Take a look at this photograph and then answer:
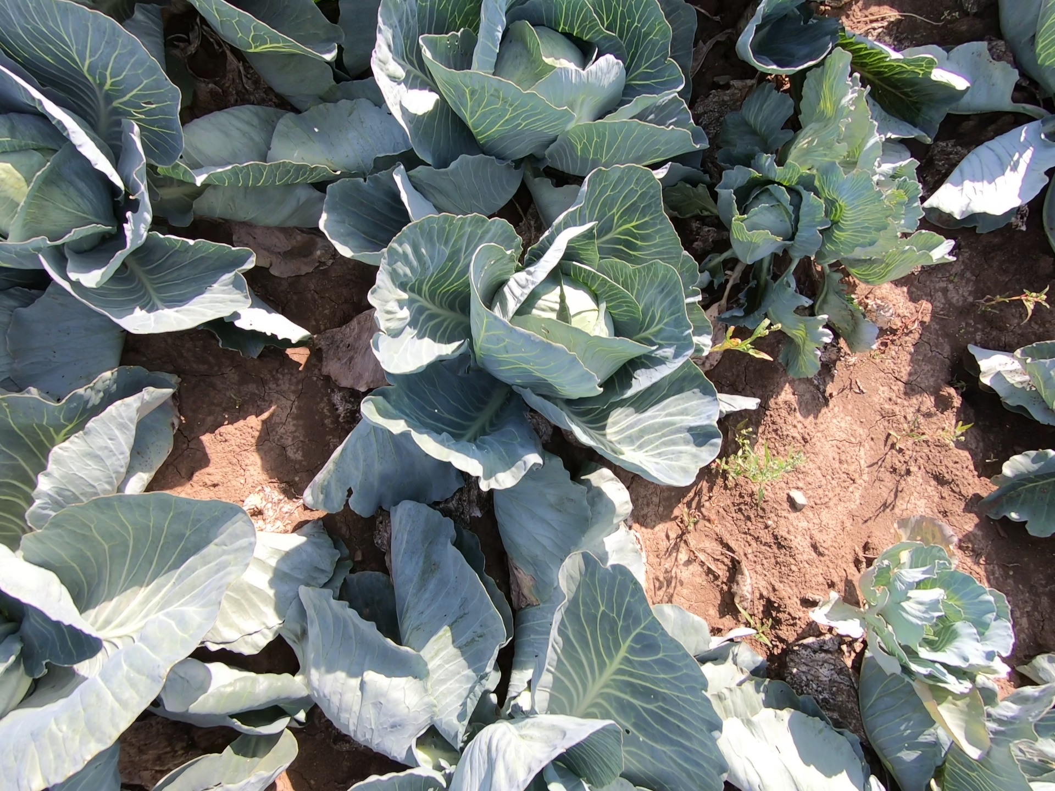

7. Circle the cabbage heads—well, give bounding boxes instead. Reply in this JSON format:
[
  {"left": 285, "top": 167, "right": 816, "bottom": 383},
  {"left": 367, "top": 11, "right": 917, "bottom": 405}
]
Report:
[
  {"left": 492, "top": 24, "right": 588, "bottom": 121},
  {"left": 1, "top": 111, "right": 108, "bottom": 244},
  {"left": 500, "top": 272, "right": 613, "bottom": 375},
  {"left": 741, "top": 185, "right": 804, "bottom": 241}
]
